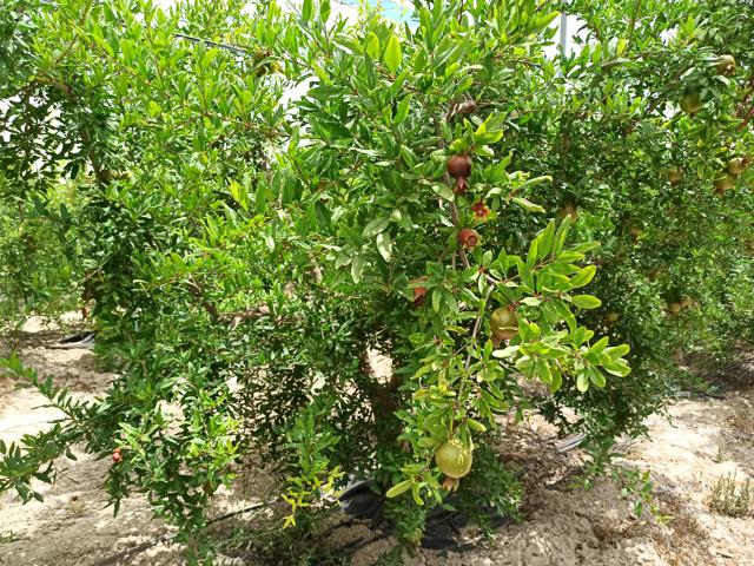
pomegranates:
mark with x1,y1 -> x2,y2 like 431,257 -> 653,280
489,307 -> 520,348
727,156 -> 750,175
680,94 -> 699,119
717,54 -> 738,75
607,311 -> 619,322
714,170 -> 736,198
435,440 -> 472,492
667,170 -> 682,184
680,295 -> 692,309
630,226 -> 641,236
668,302 -> 682,315
560,205 -> 578,222
458,228 -> 482,249
254,50 -> 272,62
447,153 -> 474,192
